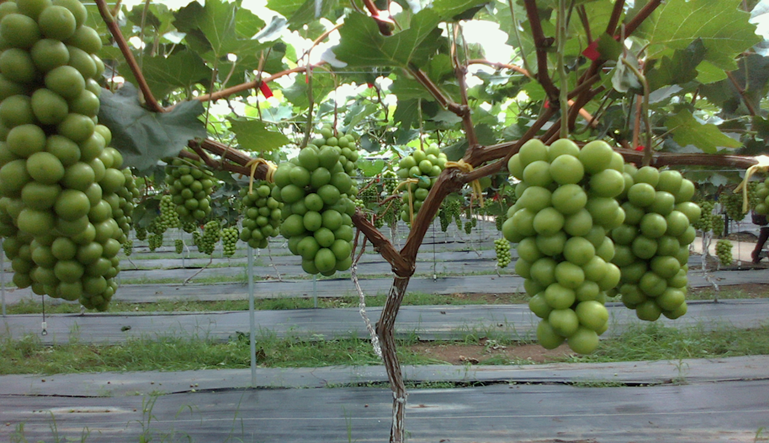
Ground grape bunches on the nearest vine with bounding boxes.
[0,0,105,236]
[610,163,701,321]
[272,144,356,277]
[500,139,627,354]
[30,126,124,299]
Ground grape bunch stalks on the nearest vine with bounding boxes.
[299,24,341,149]
[622,58,652,164]
[558,1,568,138]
